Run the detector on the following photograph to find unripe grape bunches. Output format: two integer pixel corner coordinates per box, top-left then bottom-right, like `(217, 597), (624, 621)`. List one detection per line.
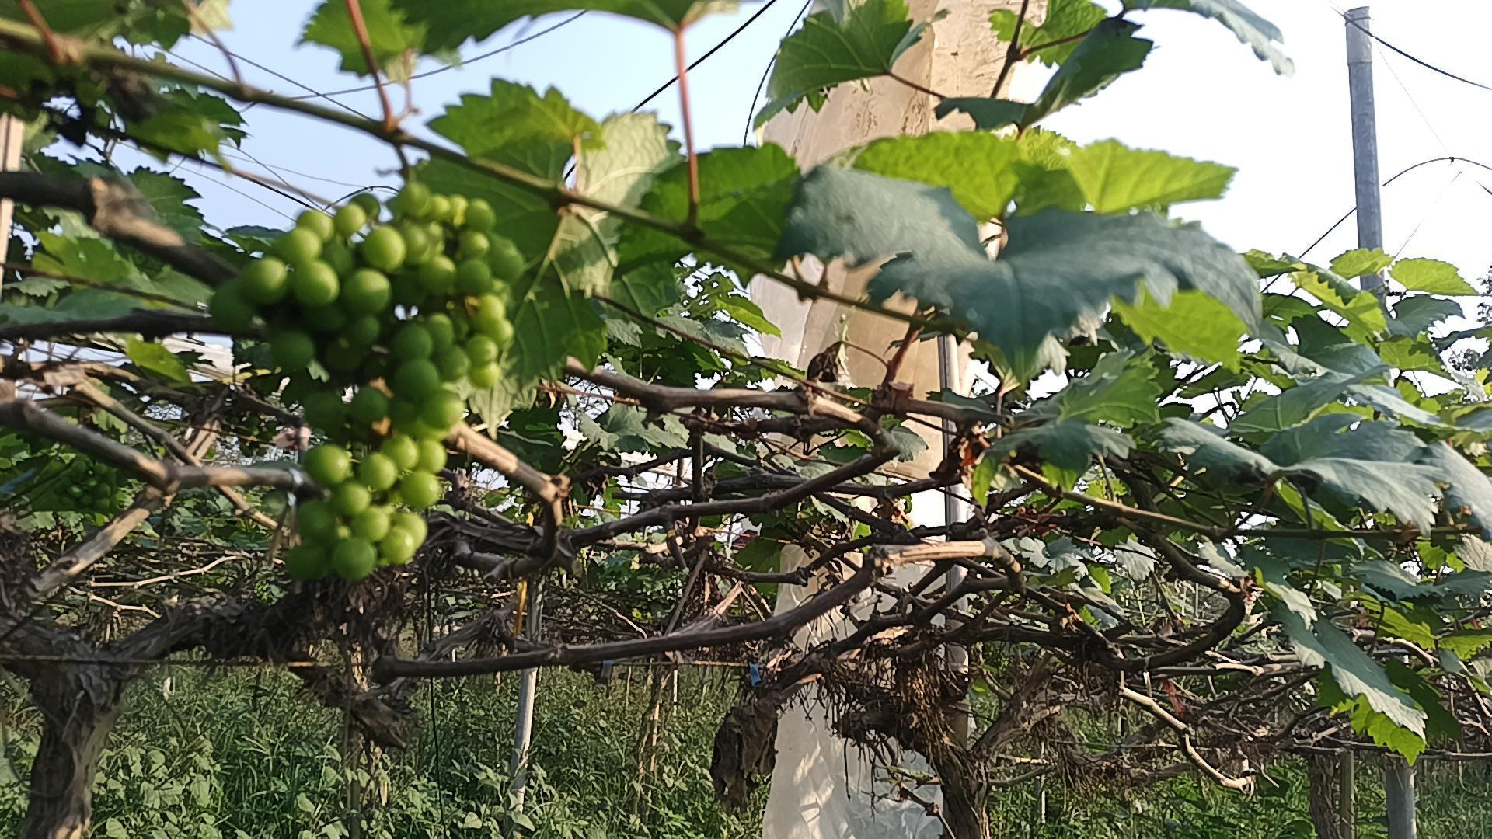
(18, 454), (133, 515)
(211, 183), (526, 579)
